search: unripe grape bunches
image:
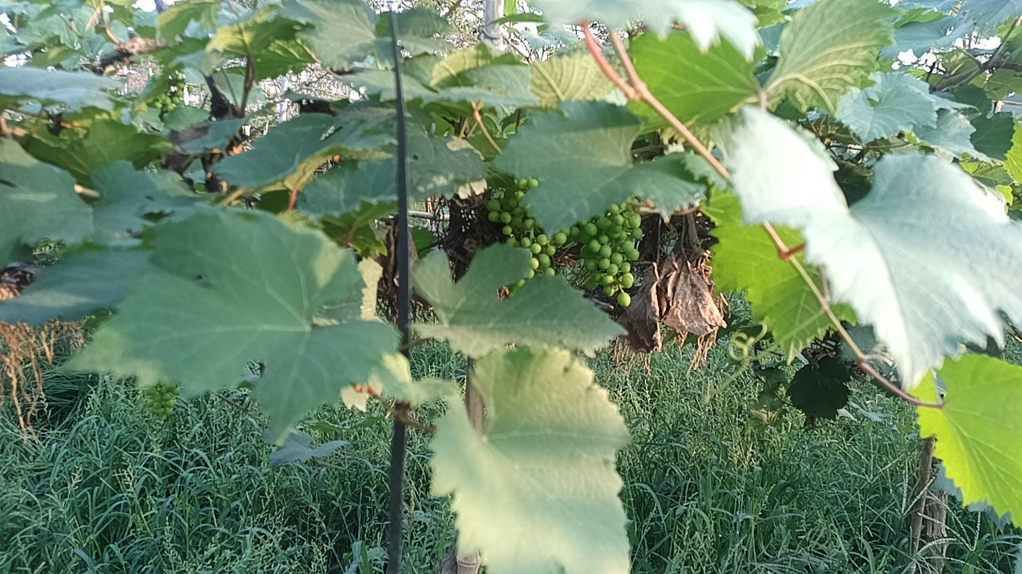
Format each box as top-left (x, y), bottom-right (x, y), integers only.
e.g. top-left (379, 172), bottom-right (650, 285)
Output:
top-left (144, 381), bottom-right (179, 416)
top-left (487, 178), bottom-right (567, 278)
top-left (148, 74), bottom-right (186, 119)
top-left (570, 203), bottom-right (642, 306)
